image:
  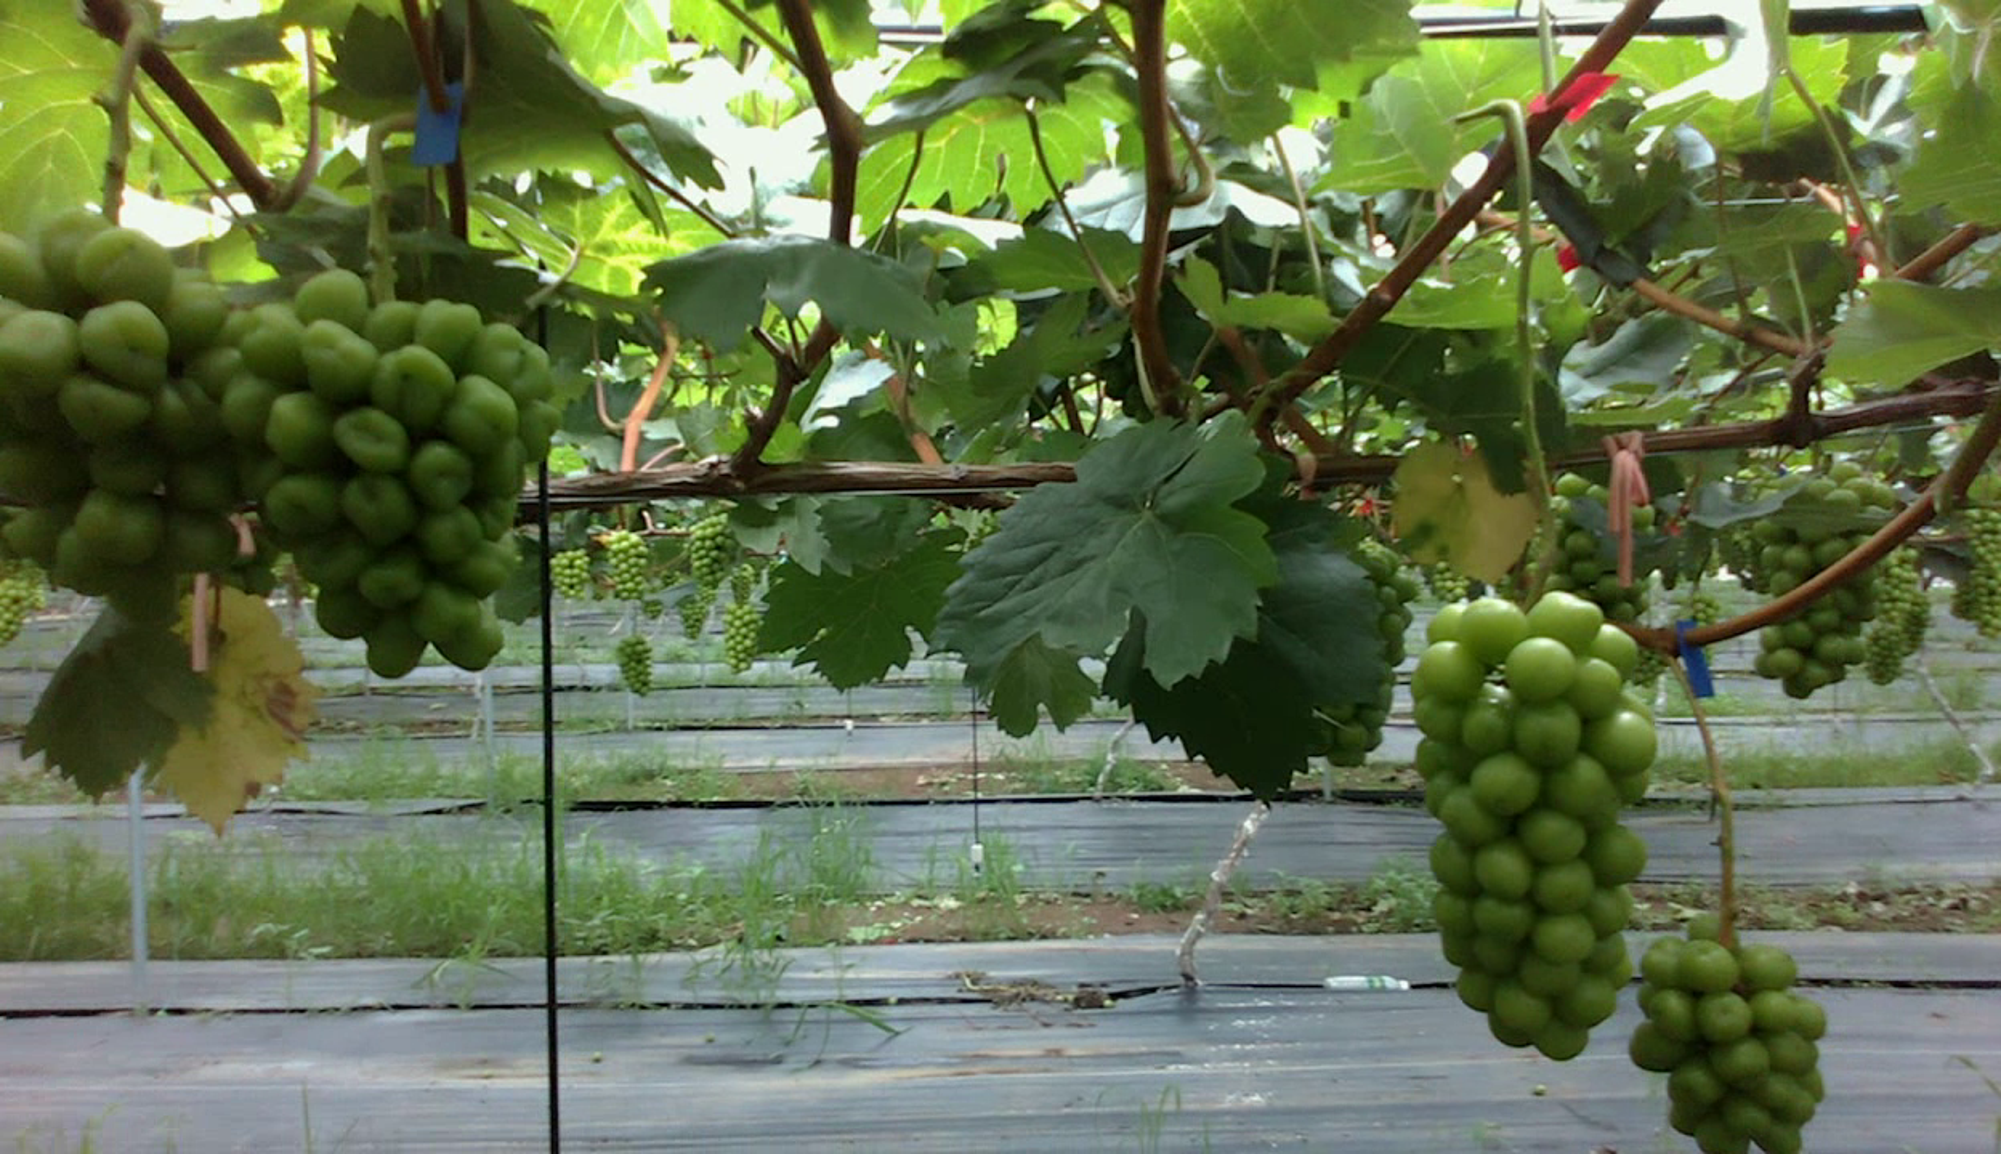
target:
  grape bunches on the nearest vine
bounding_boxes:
[221,266,564,678]
[1629,912,1825,1152]
[2,207,268,620]
[1409,590,1656,1059]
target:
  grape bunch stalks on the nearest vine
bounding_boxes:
[1499,95,1554,612]
[367,111,414,308]
[1664,654,1733,950]
[101,3,149,224]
